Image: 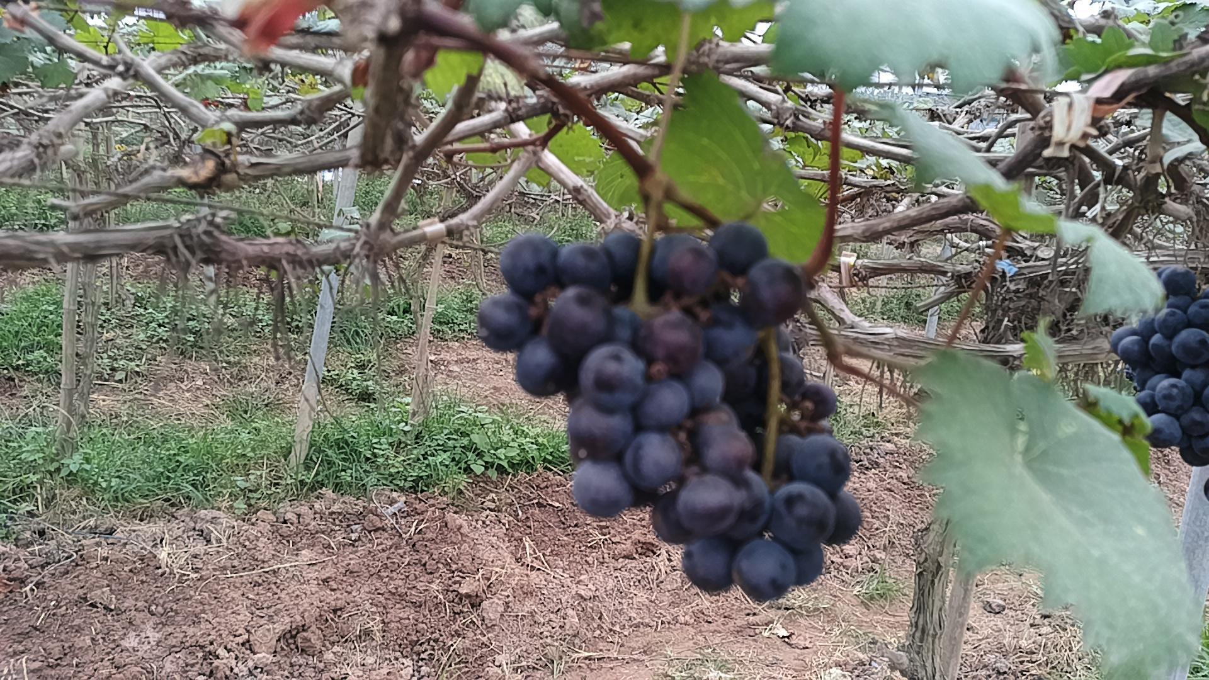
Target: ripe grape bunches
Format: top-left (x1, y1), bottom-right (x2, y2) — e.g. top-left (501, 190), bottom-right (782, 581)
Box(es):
top-left (480, 222), bottom-right (862, 600)
top-left (1111, 266), bottom-right (1208, 467)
